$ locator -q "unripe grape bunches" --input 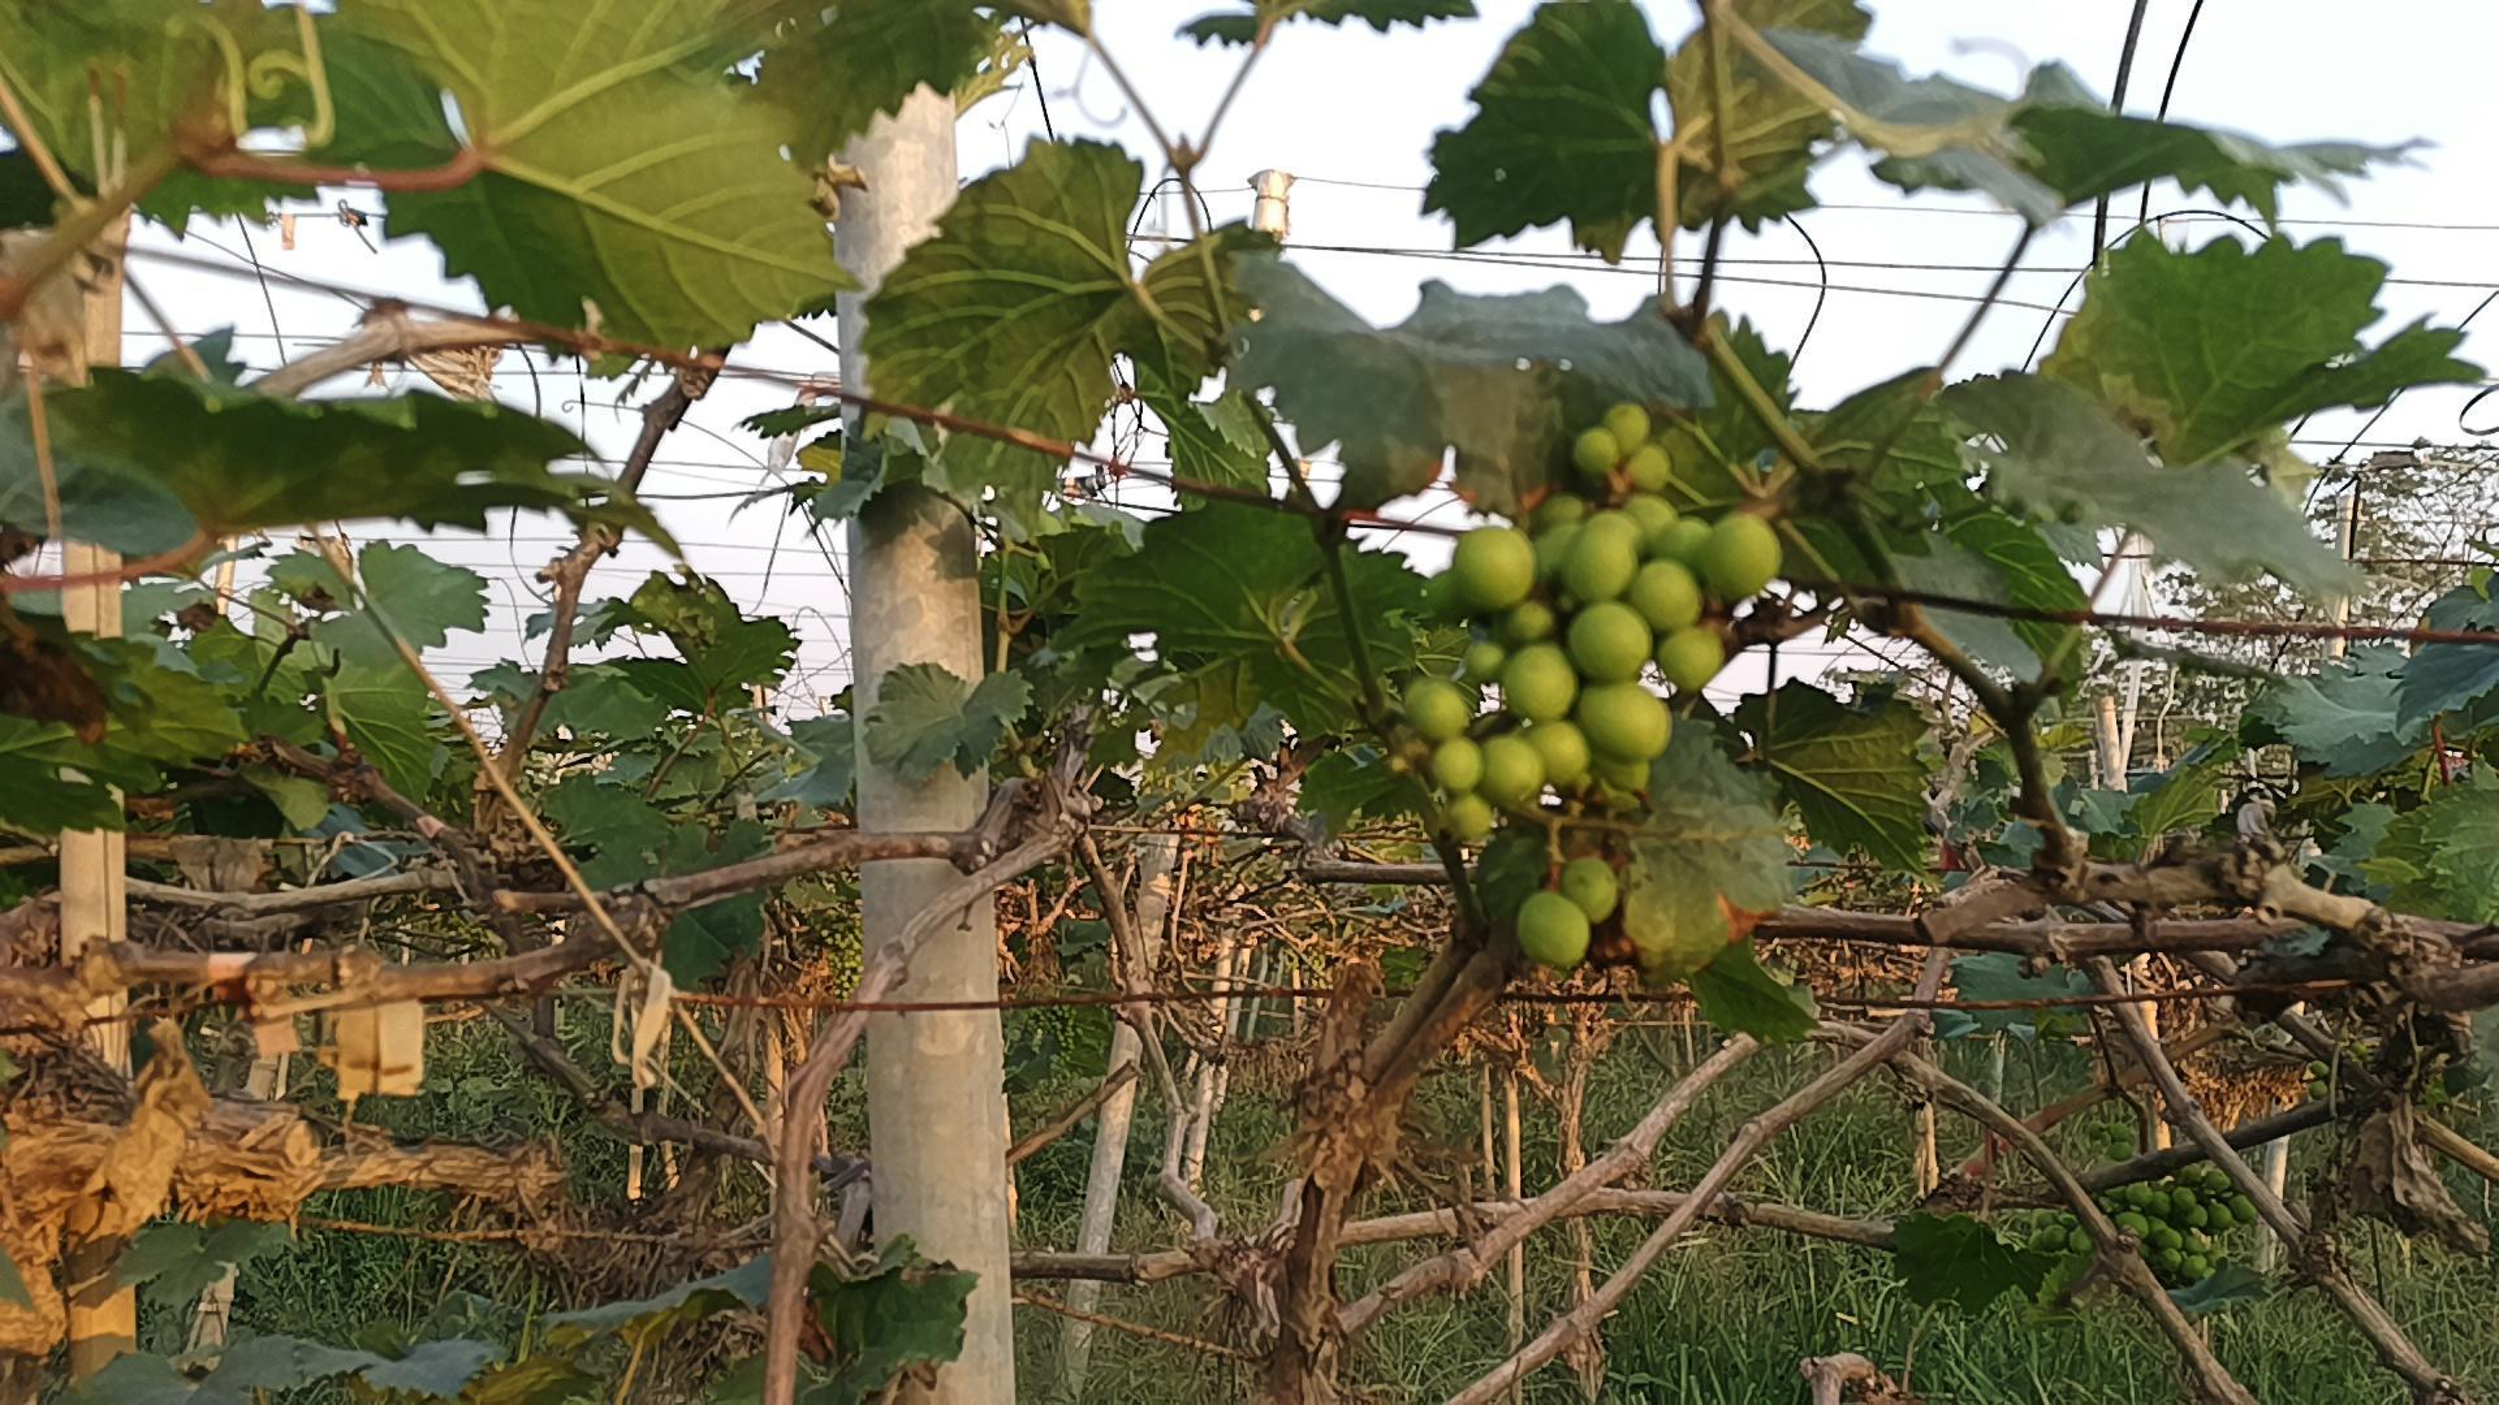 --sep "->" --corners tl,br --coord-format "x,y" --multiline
1399,405 -> 1779,842
2029,1141 -> 2257,1280
1518,833 -> 1622,967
